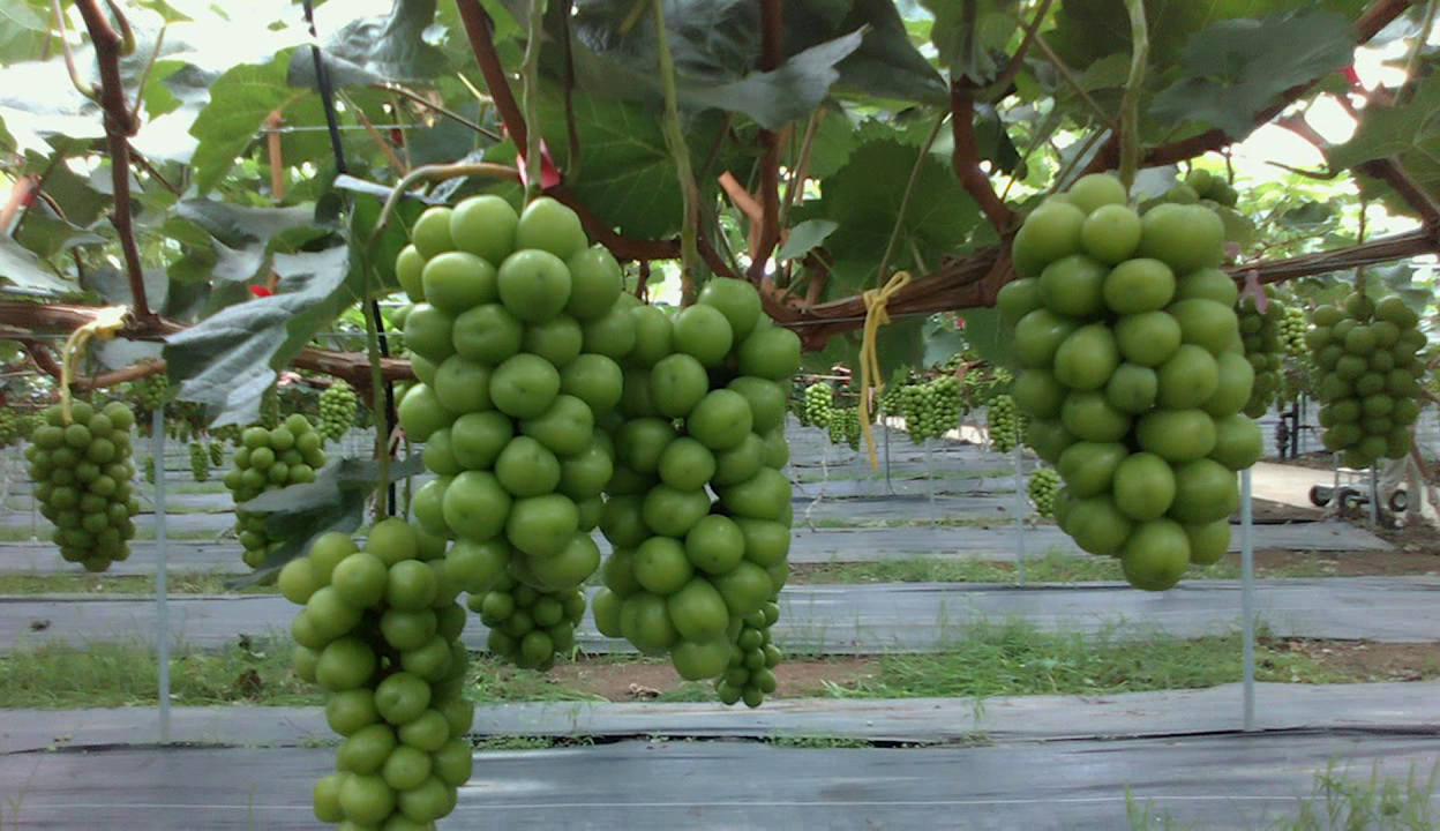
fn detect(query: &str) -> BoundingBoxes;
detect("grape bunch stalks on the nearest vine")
[522,0,545,214]
[1119,1,1149,189]
[651,0,697,313]
[363,164,520,523]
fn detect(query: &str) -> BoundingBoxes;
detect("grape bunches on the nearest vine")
[997,173,1266,592]
[591,276,802,682]
[395,194,633,594]
[278,516,473,830]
